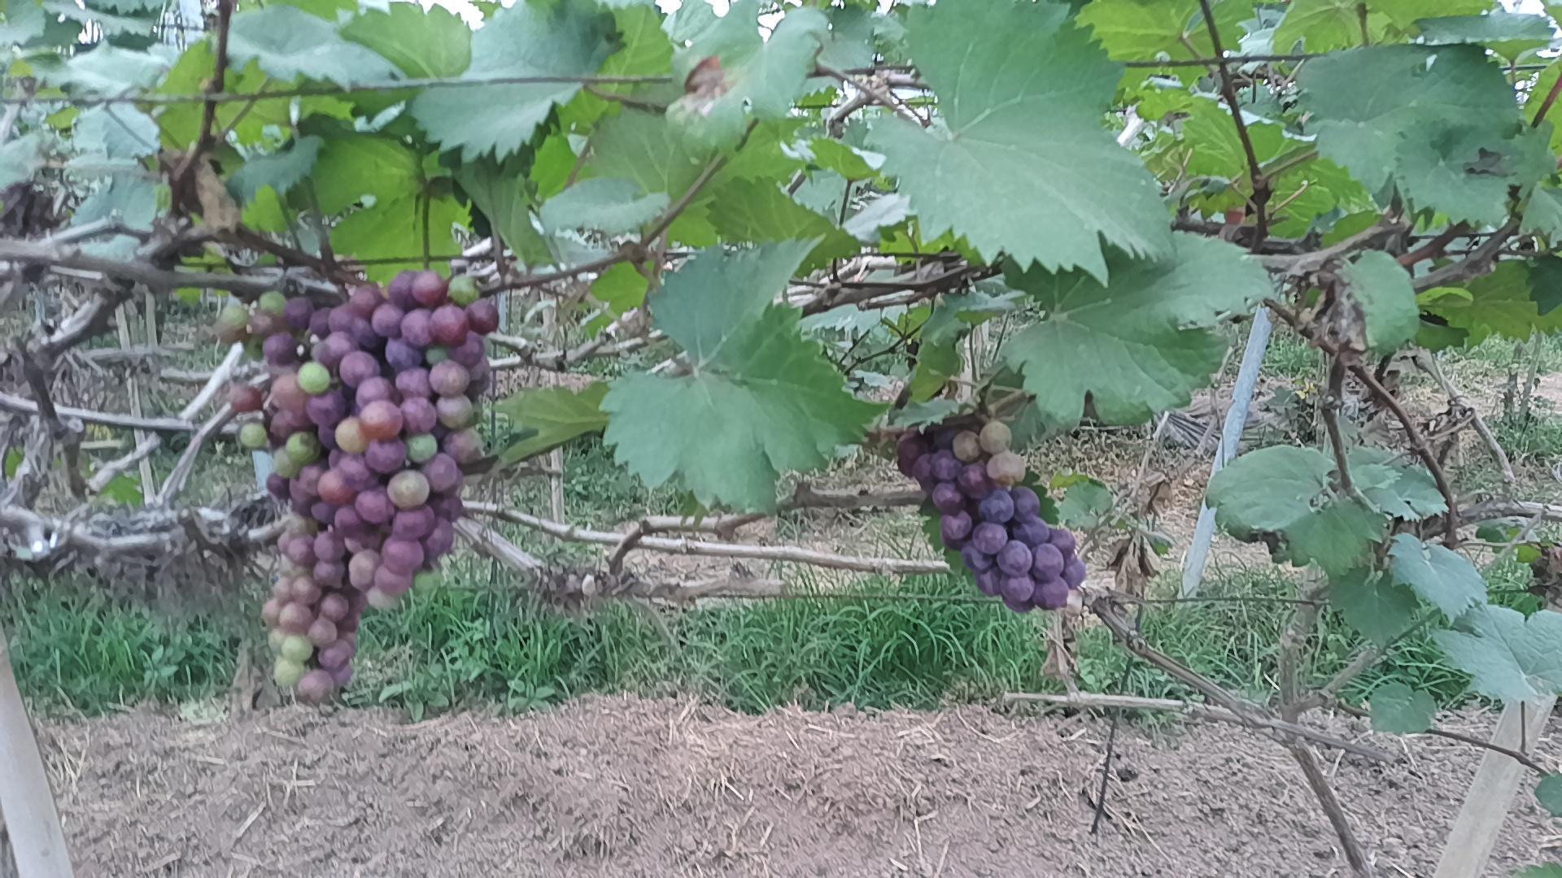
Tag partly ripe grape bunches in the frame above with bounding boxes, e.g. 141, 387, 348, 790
216, 290, 366, 705
297, 270, 500, 608
901, 417, 1089, 614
